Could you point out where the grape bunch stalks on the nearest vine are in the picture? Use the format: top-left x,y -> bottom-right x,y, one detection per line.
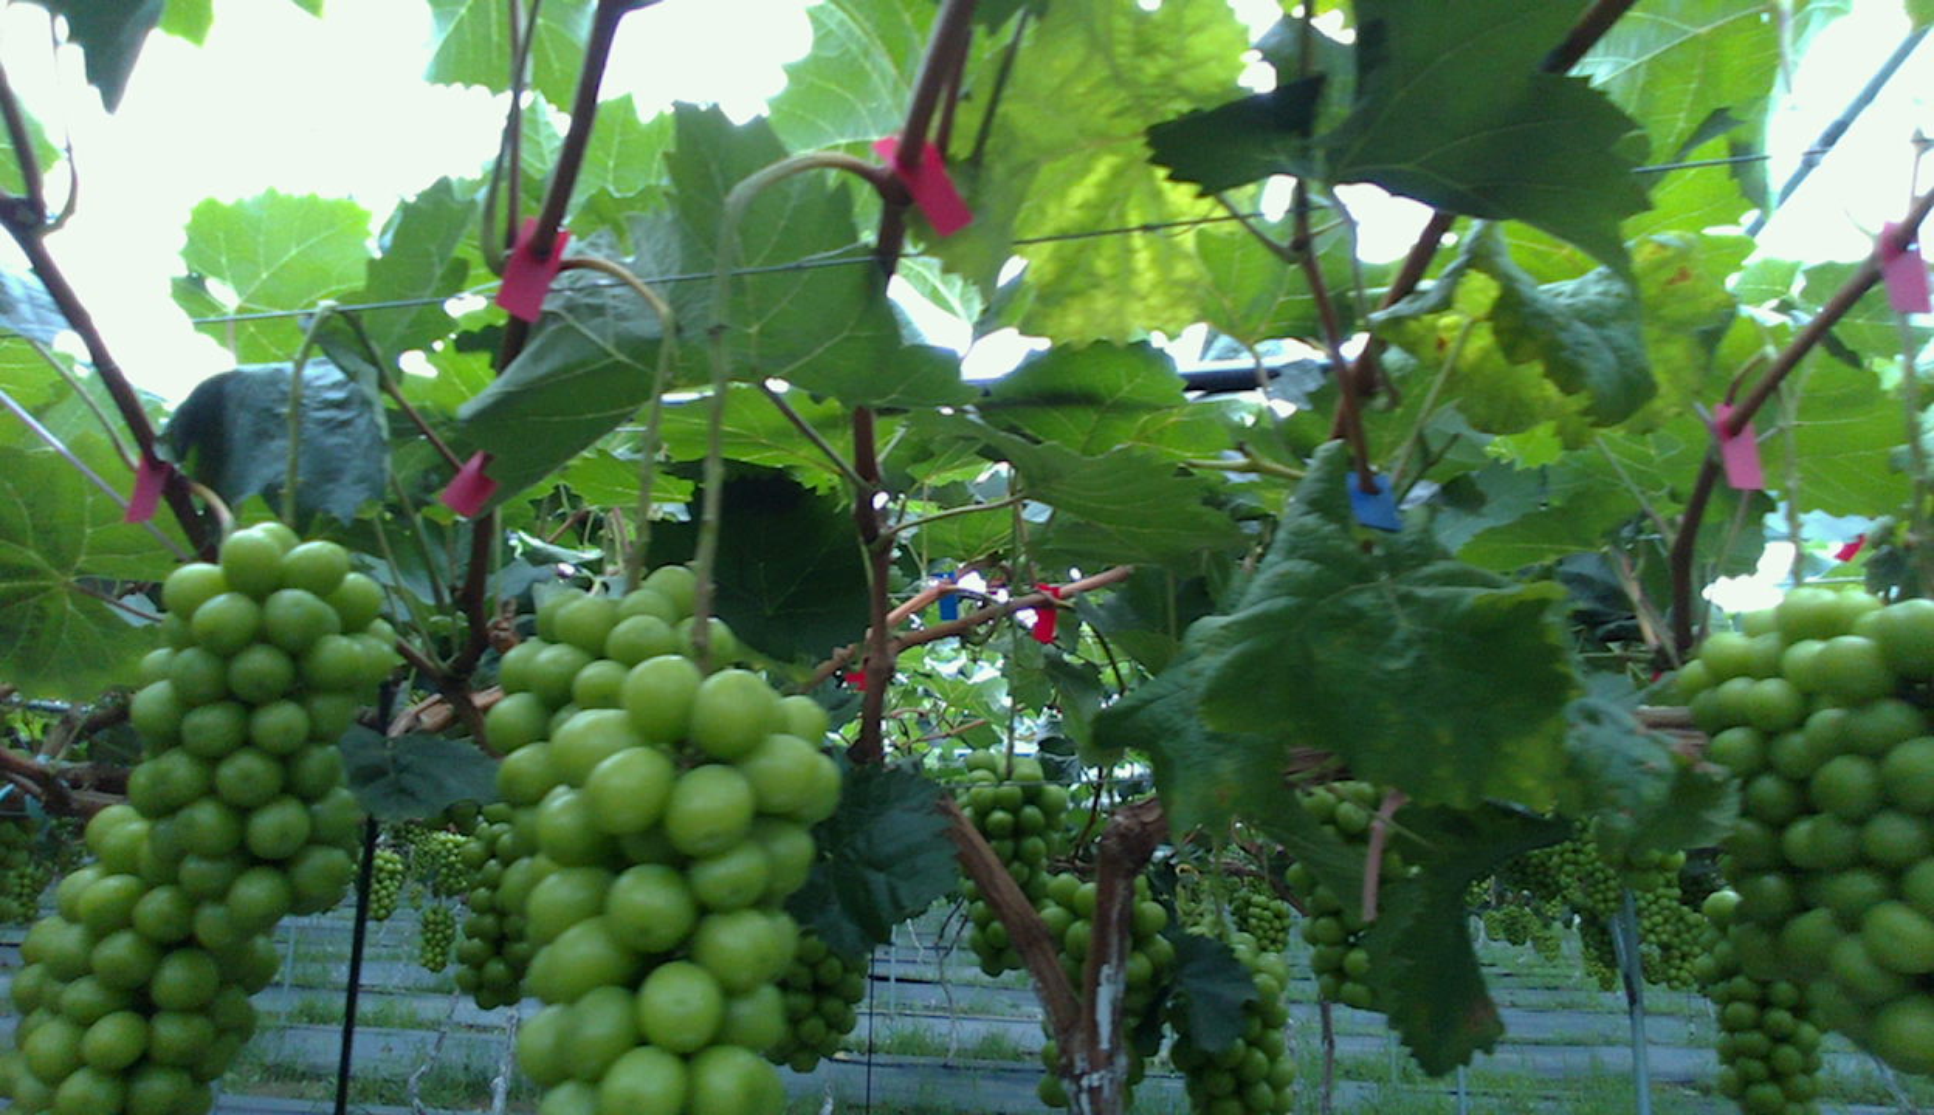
280,299 -> 462,525
693,152 -> 877,674
563,254 -> 671,596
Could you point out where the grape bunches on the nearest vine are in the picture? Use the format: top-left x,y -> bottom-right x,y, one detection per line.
1680,588 -> 1888,980
482,564 -> 694,918
2,802 -> 280,1113
1781,595 -> 1932,1076
516,654 -> 841,1112
126,520 -> 400,948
